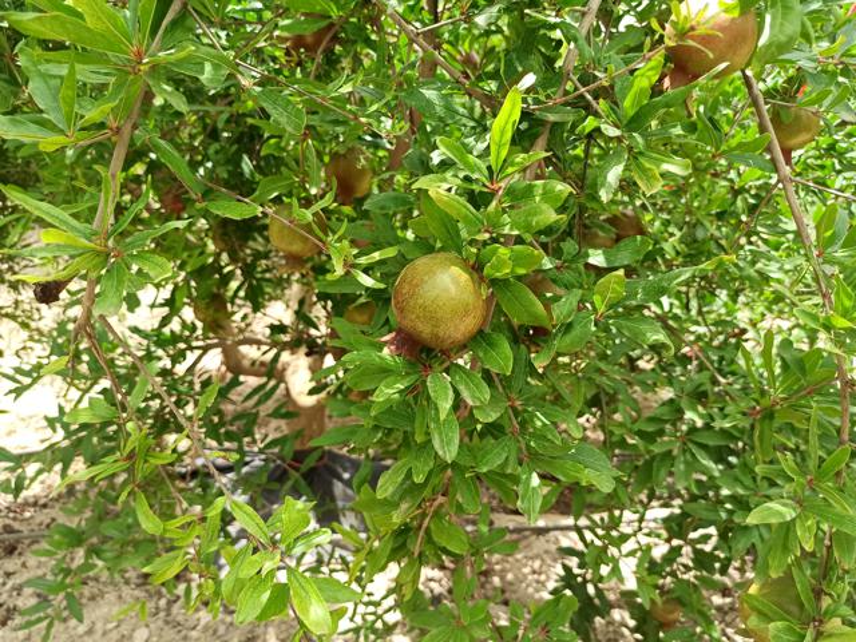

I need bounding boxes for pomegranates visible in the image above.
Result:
[325,144,373,206]
[769,108,819,166]
[377,251,490,368]
[277,21,336,51]
[341,305,374,324]
[661,1,756,92]
[269,203,330,274]
[602,213,645,239]
[650,599,681,630]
